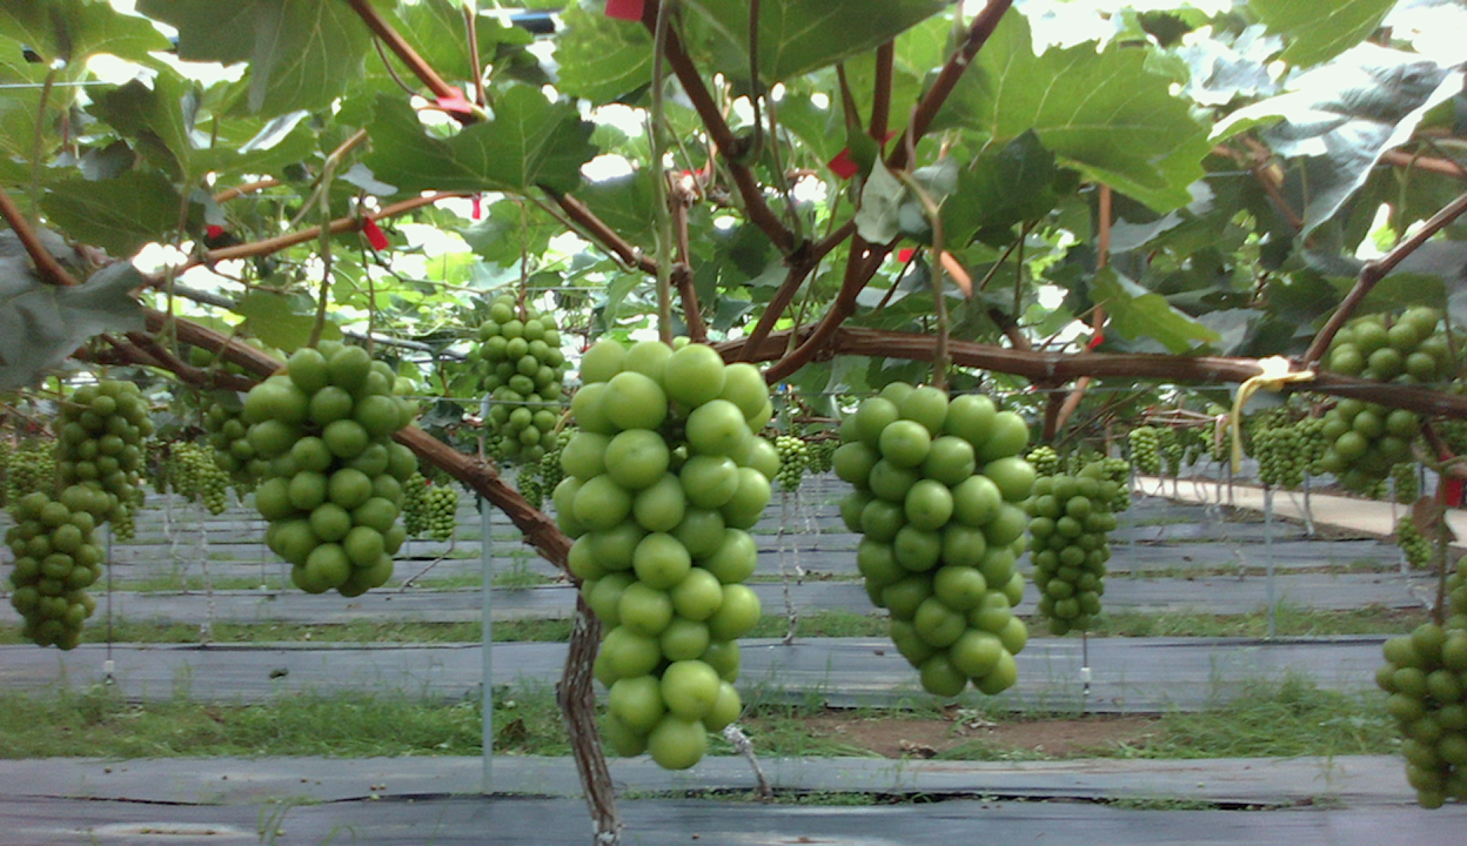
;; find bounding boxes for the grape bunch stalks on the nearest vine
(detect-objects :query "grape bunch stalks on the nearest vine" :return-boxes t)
[899,172,951,389]
[310,128,367,345]
[651,0,681,343]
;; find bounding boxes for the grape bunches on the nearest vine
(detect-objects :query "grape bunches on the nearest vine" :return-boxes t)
[833,381,1036,698]
[249,341,418,599]
[554,336,781,772]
